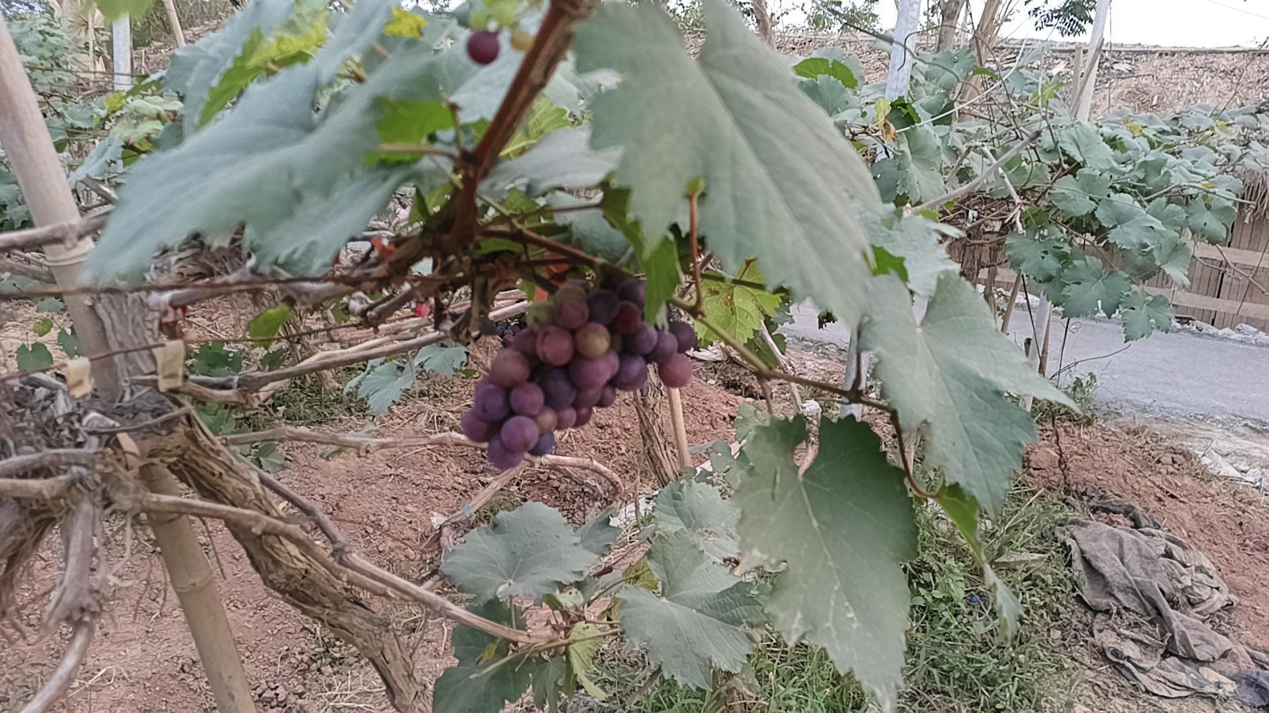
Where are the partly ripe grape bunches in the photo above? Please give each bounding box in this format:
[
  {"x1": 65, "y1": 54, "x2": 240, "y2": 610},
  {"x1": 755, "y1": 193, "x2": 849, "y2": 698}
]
[
  {"x1": 461, "y1": 279, "x2": 696, "y2": 469},
  {"x1": 457, "y1": 0, "x2": 542, "y2": 65}
]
